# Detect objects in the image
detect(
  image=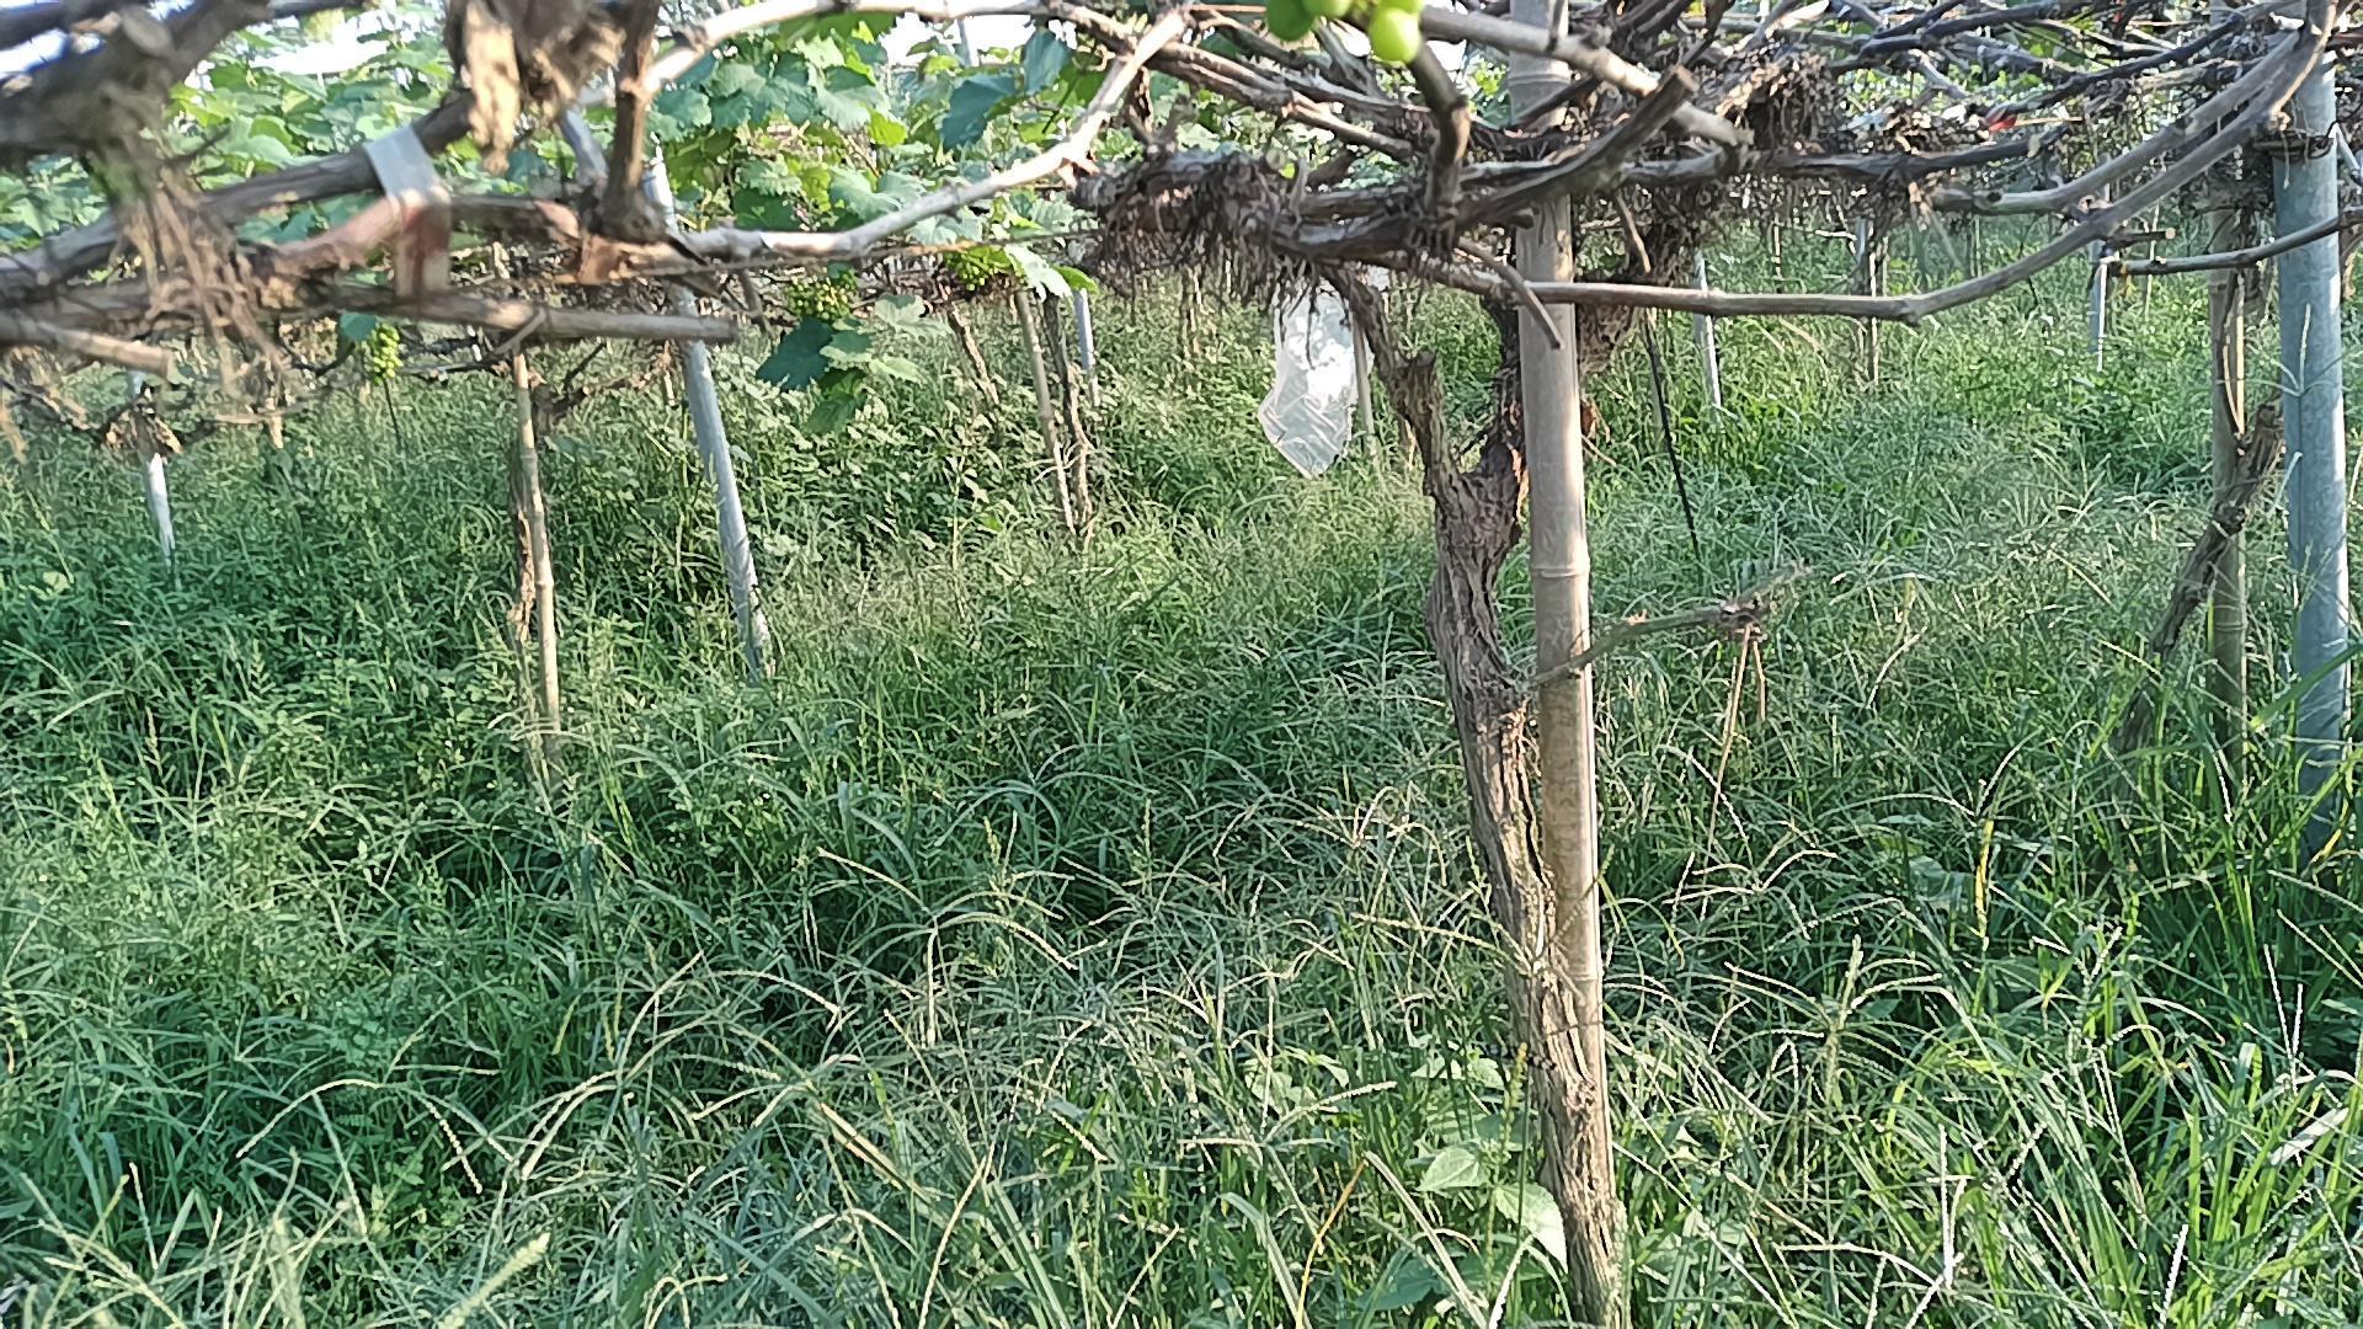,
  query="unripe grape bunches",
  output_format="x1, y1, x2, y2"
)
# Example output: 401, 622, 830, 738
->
1254, 0, 1424, 65
944, 252, 996, 292
358, 319, 402, 385
785, 267, 859, 319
